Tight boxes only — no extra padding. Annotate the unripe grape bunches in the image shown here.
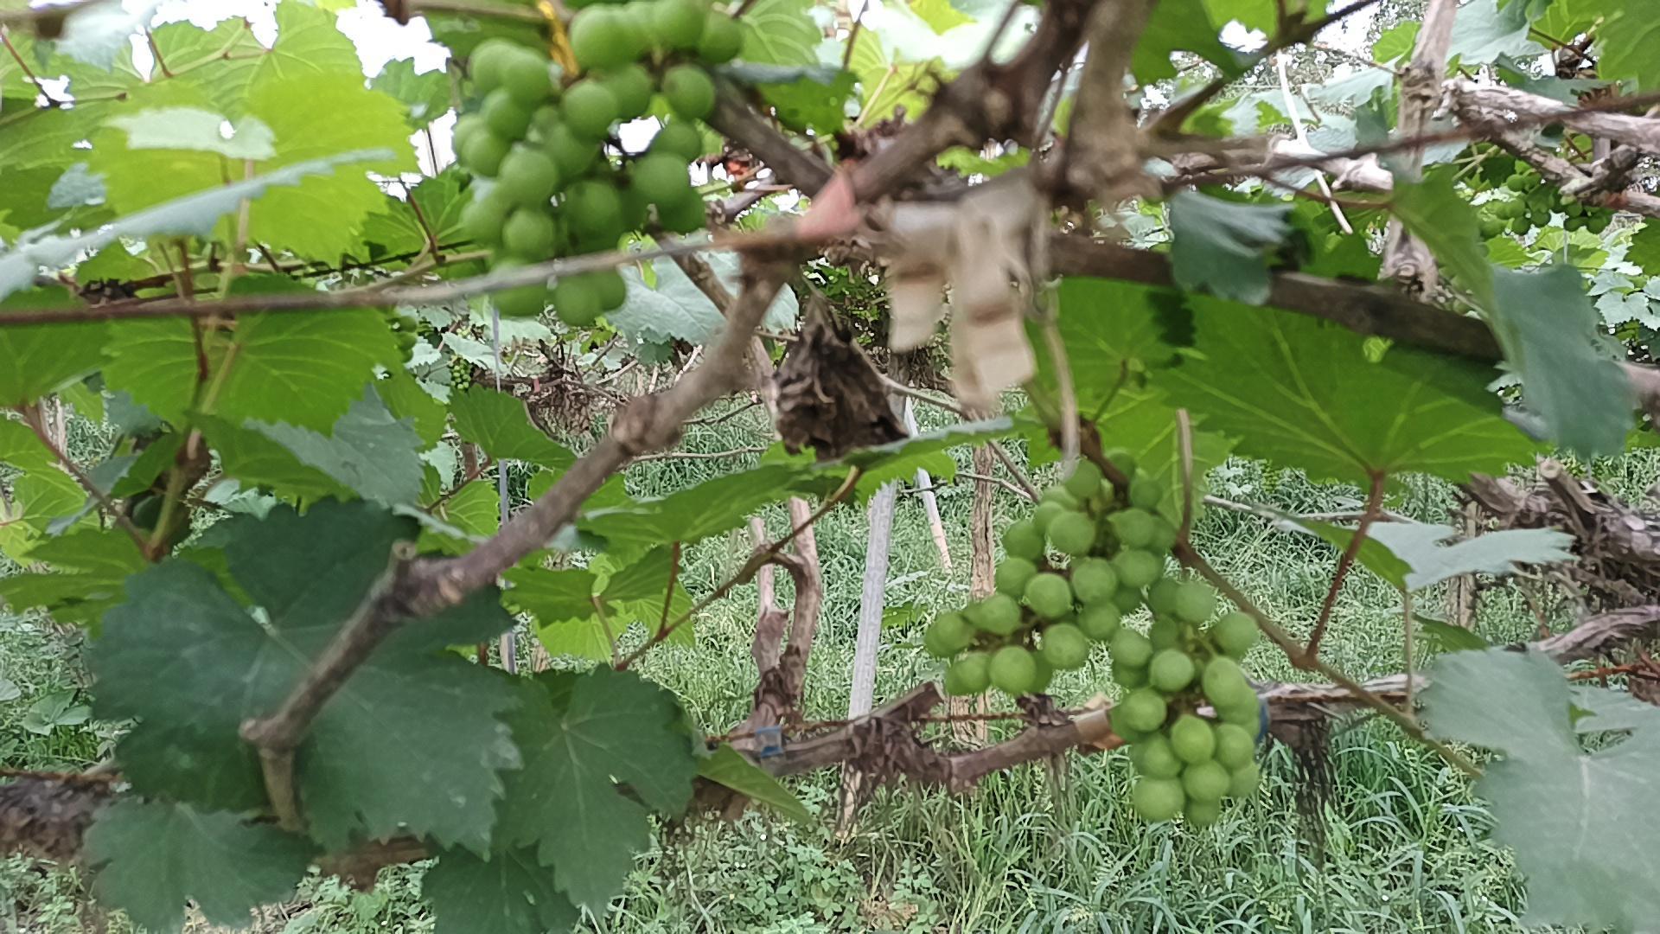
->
[1109,577,1260,824]
[926,444,1174,696]
[1481,169,1614,240]
[455,0,741,329]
